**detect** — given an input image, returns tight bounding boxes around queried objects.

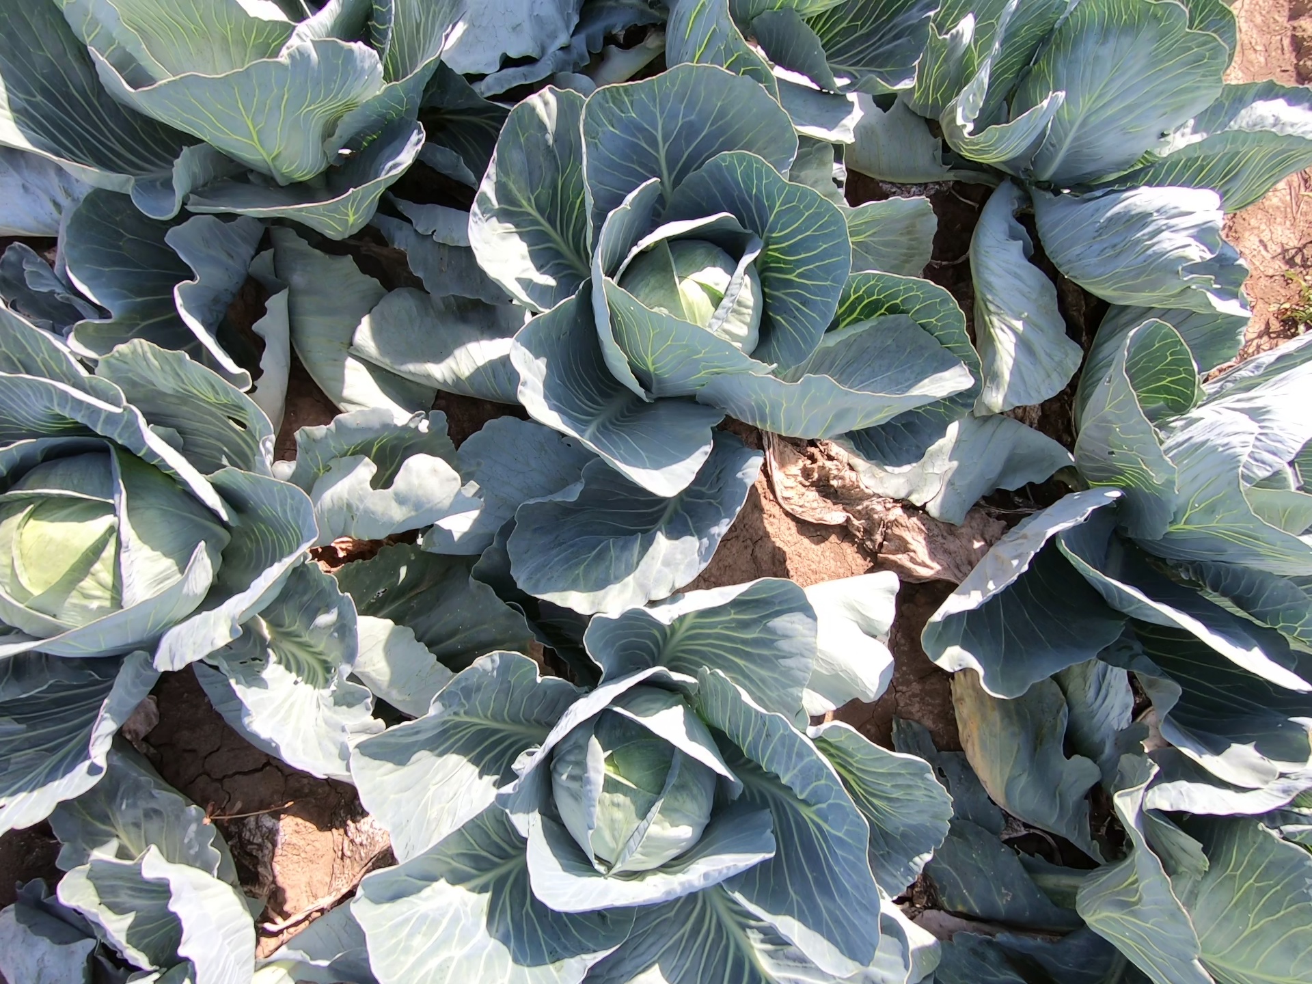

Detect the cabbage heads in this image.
[94,2,310,105]
[2,455,210,647]
[552,689,717,871]
[615,236,760,374]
